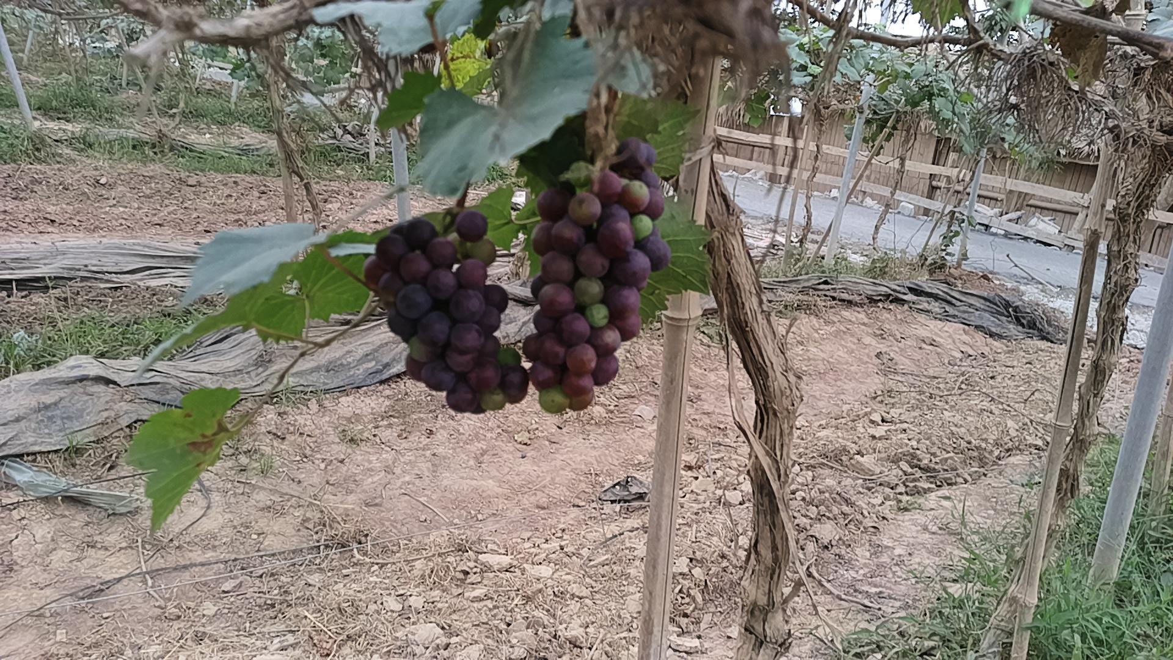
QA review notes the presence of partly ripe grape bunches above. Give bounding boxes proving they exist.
[364,209,528,413]
[523,137,671,411]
